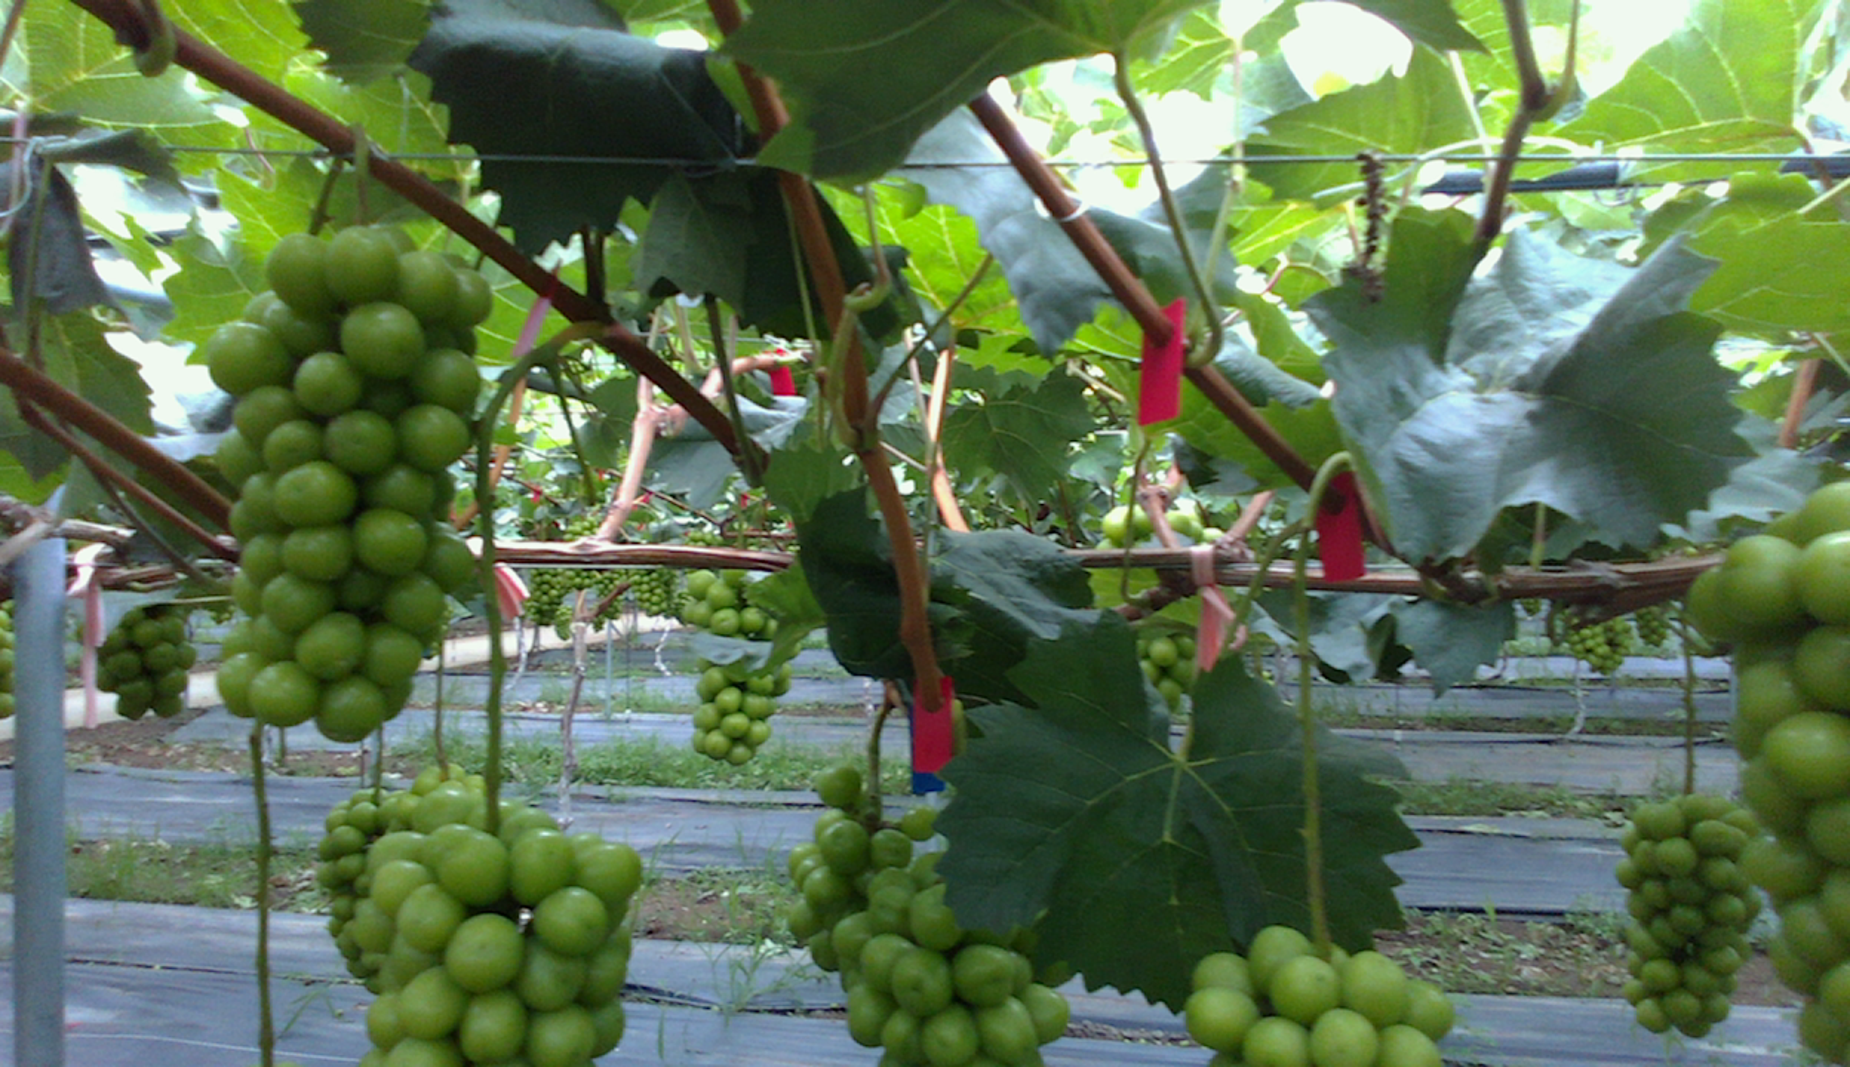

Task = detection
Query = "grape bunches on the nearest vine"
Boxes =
[206,225,491,744]
[356,782,645,1066]
[833,854,1073,1066]
[1677,480,1849,1066]
[786,766,937,971]
[1186,923,1451,1066]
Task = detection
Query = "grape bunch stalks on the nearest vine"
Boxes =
[476,320,586,833]
[1294,451,1346,959]
[351,126,372,222]
[866,704,888,812]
